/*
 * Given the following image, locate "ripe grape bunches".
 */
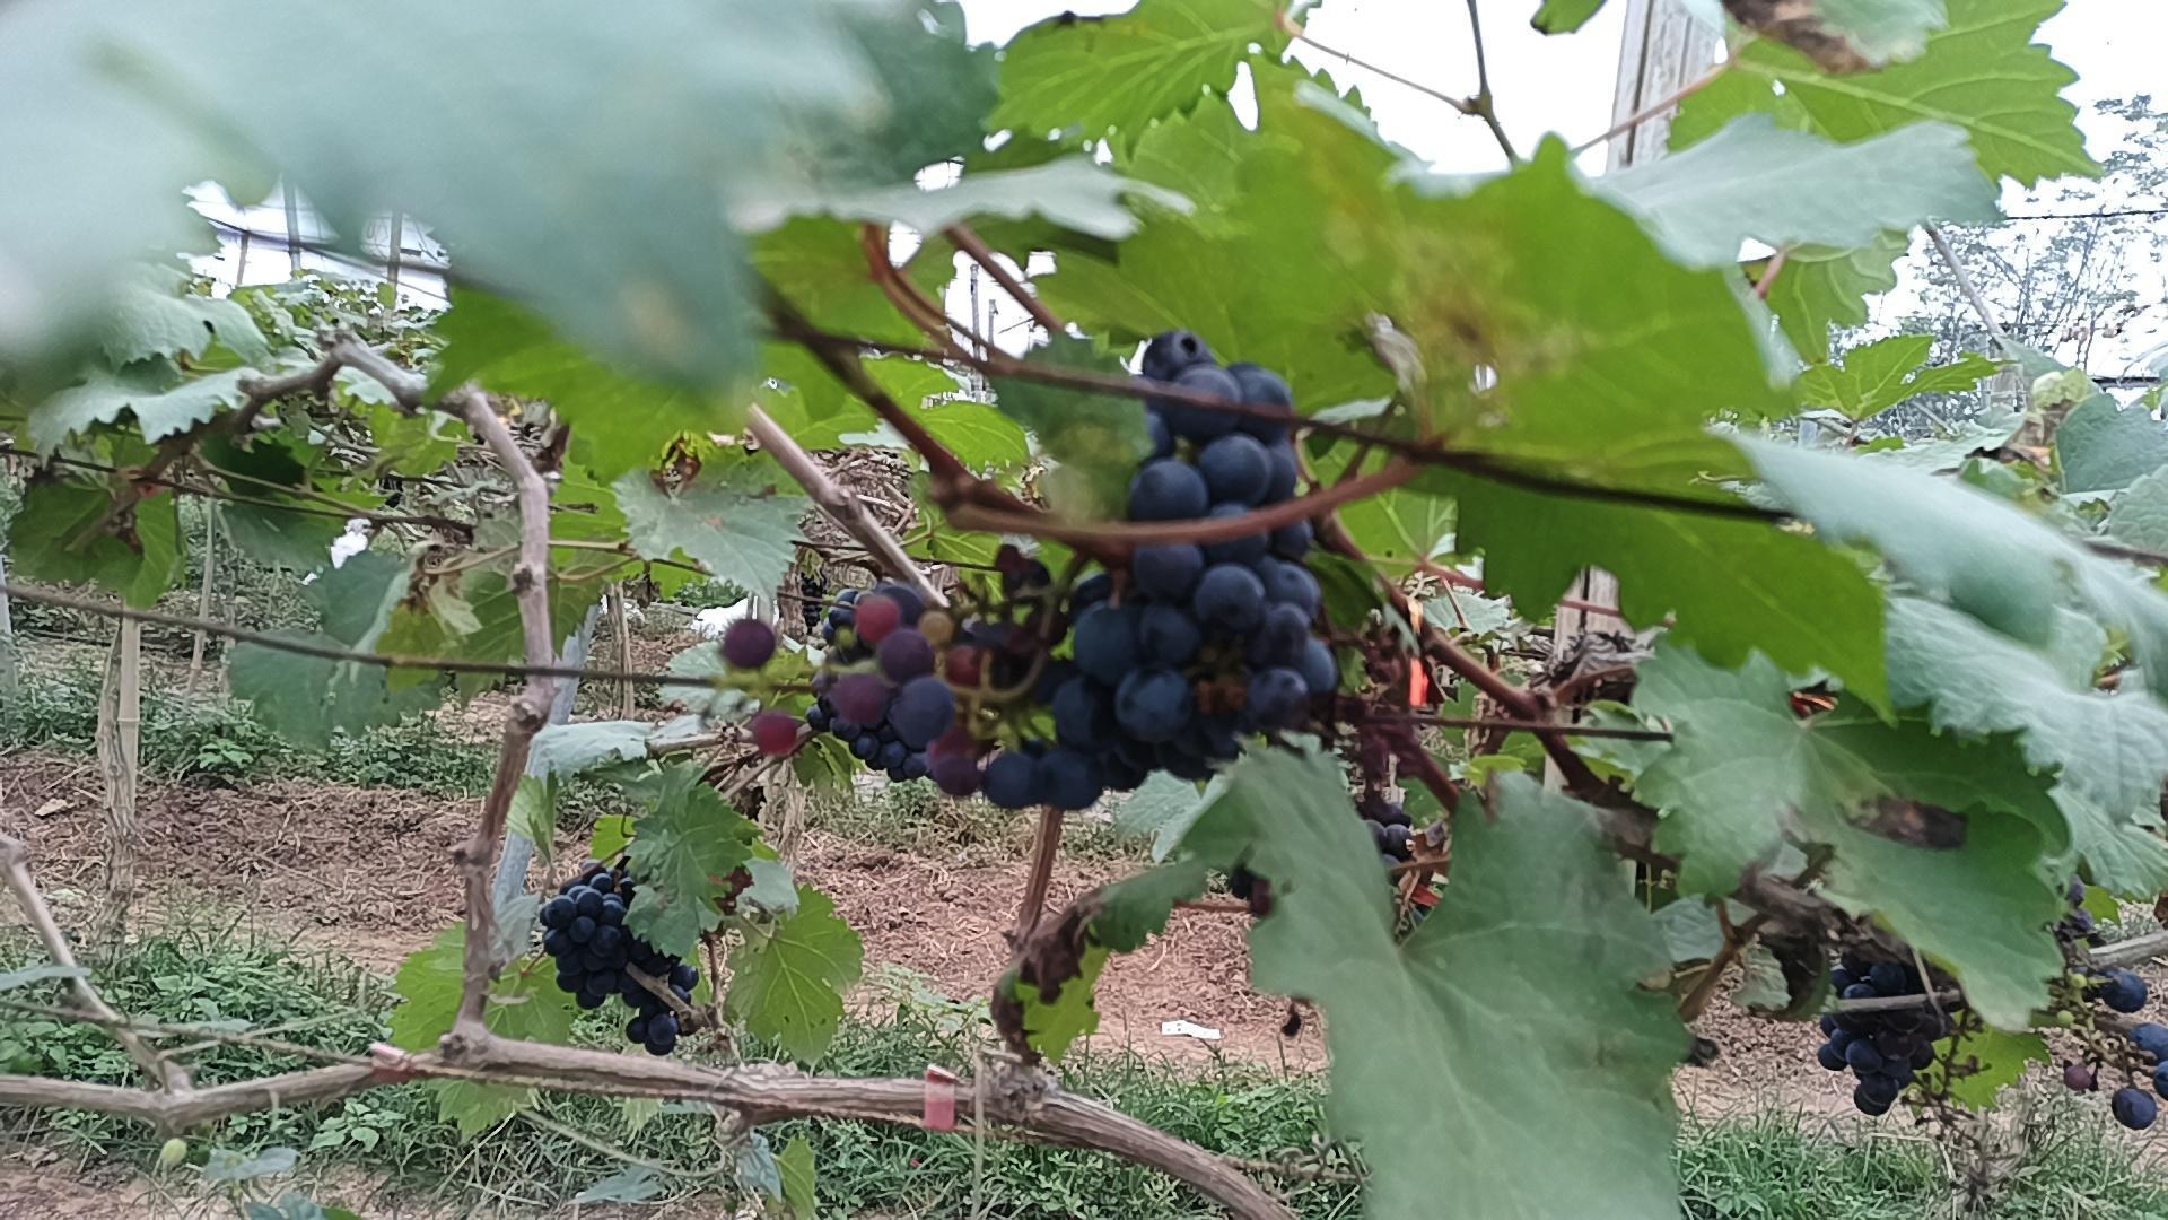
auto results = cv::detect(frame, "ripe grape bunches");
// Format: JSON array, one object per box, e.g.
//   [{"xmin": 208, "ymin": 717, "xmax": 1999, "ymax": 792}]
[
  {"xmin": 1817, "ymin": 952, "xmax": 1949, "ymax": 1115},
  {"xmin": 2057, "ymin": 879, "xmax": 2167, "ymax": 1126},
  {"xmin": 718, "ymin": 331, "xmax": 1335, "ymax": 810},
  {"xmin": 541, "ymin": 857, "xmax": 699, "ymax": 1055},
  {"xmin": 1356, "ymin": 799, "xmax": 1411, "ymax": 862}
]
